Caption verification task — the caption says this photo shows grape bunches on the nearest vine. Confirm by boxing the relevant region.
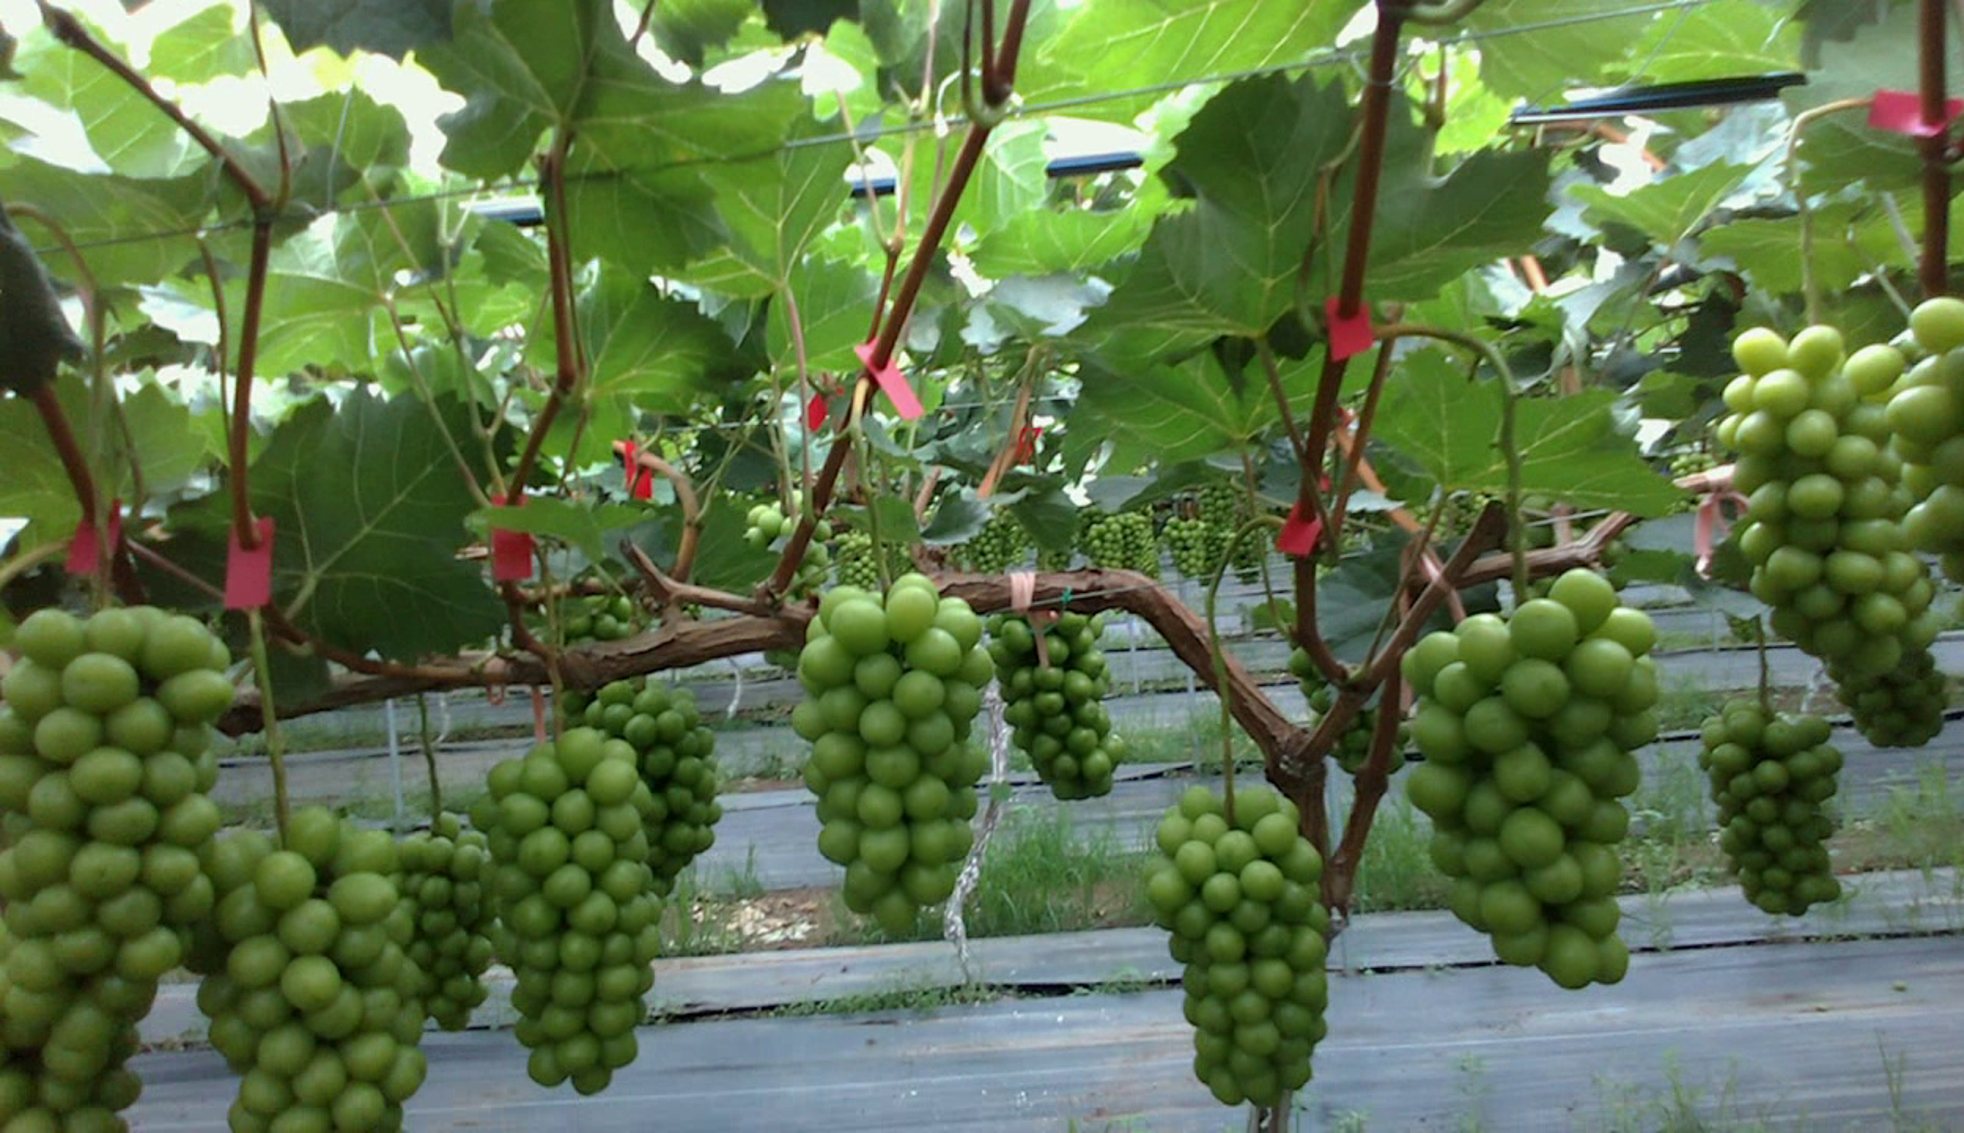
[1143,785,1328,1108]
[467,727,663,1095]
[181,804,428,1131]
[792,574,995,936]
[1884,297,1962,581]
[0,1020,142,1131]
[1718,323,1939,675]
[2,604,234,1079]
[1401,566,1660,988]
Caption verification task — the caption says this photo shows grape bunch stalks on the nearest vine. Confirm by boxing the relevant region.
[1375,321,1528,609]
[850,378,891,598]
[1797,194,1819,324]
[5,200,112,615]
[533,540,562,743]
[1204,513,1283,831]
[250,609,290,845]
